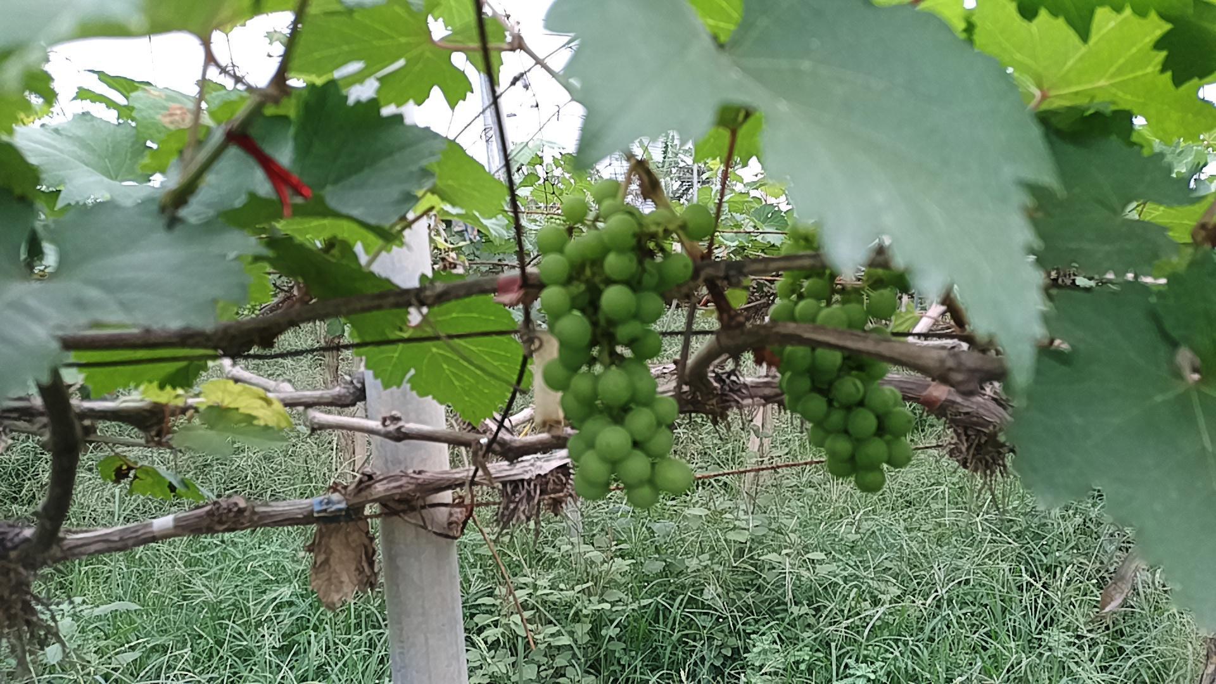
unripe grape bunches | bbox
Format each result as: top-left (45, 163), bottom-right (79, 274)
top-left (769, 224), bottom-right (915, 494)
top-left (538, 180), bottom-right (713, 508)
